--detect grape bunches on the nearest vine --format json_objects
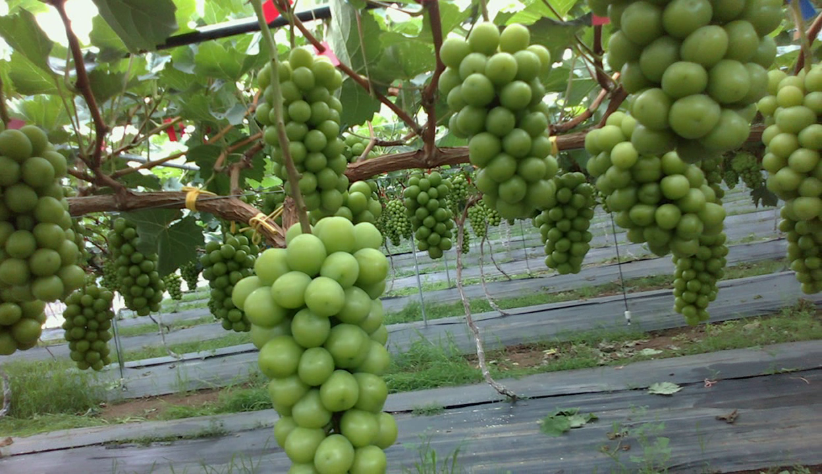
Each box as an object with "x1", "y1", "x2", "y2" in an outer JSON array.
[
  {"x1": 586, "y1": 111, "x2": 725, "y2": 257},
  {"x1": 256, "y1": 49, "x2": 350, "y2": 215},
  {"x1": 231, "y1": 216, "x2": 397, "y2": 473},
  {"x1": 586, "y1": 0, "x2": 783, "y2": 165},
  {"x1": 438, "y1": 22, "x2": 557, "y2": 219},
  {"x1": 757, "y1": 62, "x2": 821, "y2": 223},
  {"x1": 1, "y1": 124, "x2": 87, "y2": 302}
]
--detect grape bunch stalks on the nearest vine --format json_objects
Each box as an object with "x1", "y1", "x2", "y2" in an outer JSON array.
[
  {"x1": 250, "y1": 0, "x2": 310, "y2": 232},
  {"x1": 284, "y1": 1, "x2": 295, "y2": 46},
  {"x1": 790, "y1": 0, "x2": 811, "y2": 71},
  {"x1": 479, "y1": 0, "x2": 488, "y2": 20}
]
